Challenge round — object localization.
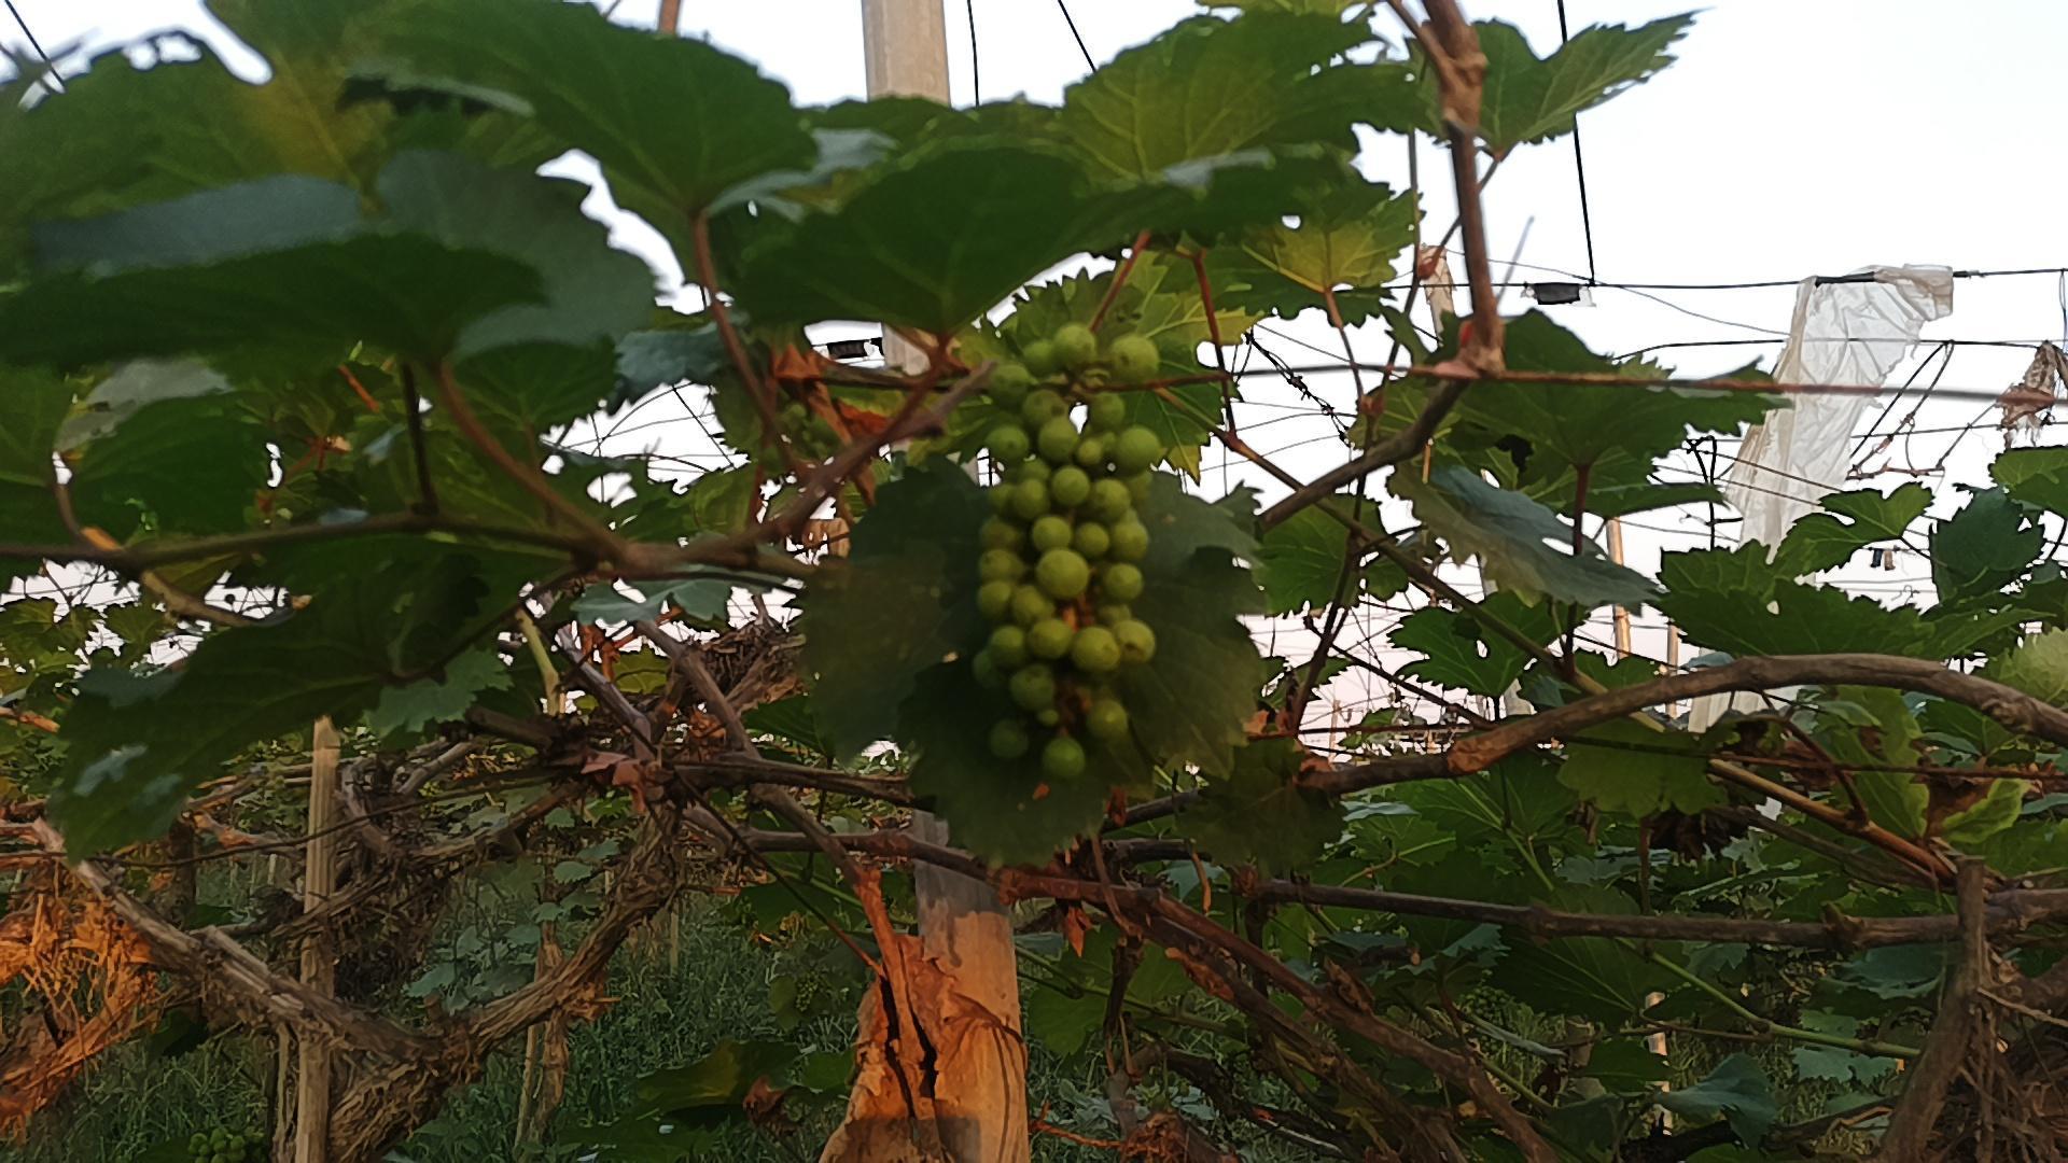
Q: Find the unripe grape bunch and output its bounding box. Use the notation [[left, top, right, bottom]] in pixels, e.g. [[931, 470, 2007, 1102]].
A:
[[972, 323, 1163, 777]]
